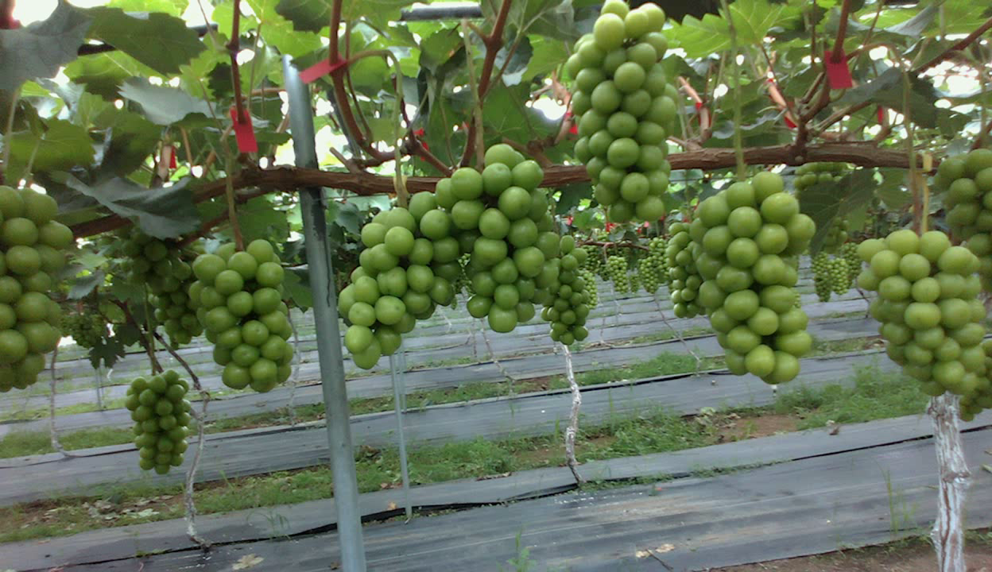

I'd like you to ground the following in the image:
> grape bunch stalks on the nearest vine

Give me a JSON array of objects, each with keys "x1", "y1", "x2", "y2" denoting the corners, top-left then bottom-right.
[
  {"x1": 971, "y1": 59, "x2": 988, "y2": 148},
  {"x1": 720, "y1": 0, "x2": 745, "y2": 180},
  {"x1": 1, "y1": 92, "x2": 19, "y2": 184},
  {"x1": 460, "y1": 21, "x2": 483, "y2": 172},
  {"x1": 846, "y1": 43, "x2": 920, "y2": 233},
  {"x1": 361, "y1": 48, "x2": 407, "y2": 208},
  {"x1": 219, "y1": 123, "x2": 242, "y2": 250}
]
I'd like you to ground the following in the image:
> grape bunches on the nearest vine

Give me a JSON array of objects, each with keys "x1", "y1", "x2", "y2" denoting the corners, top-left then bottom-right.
[
  {"x1": 565, "y1": 0, "x2": 678, "y2": 225},
  {"x1": 856, "y1": 228, "x2": 986, "y2": 396},
  {"x1": 689, "y1": 170, "x2": 816, "y2": 385},
  {"x1": 188, "y1": 238, "x2": 293, "y2": 393},
  {"x1": 434, "y1": 142, "x2": 560, "y2": 333},
  {"x1": 0, "y1": 187, "x2": 72, "y2": 392},
  {"x1": 337, "y1": 191, "x2": 461, "y2": 369},
  {"x1": 933, "y1": 149, "x2": 991, "y2": 295}
]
